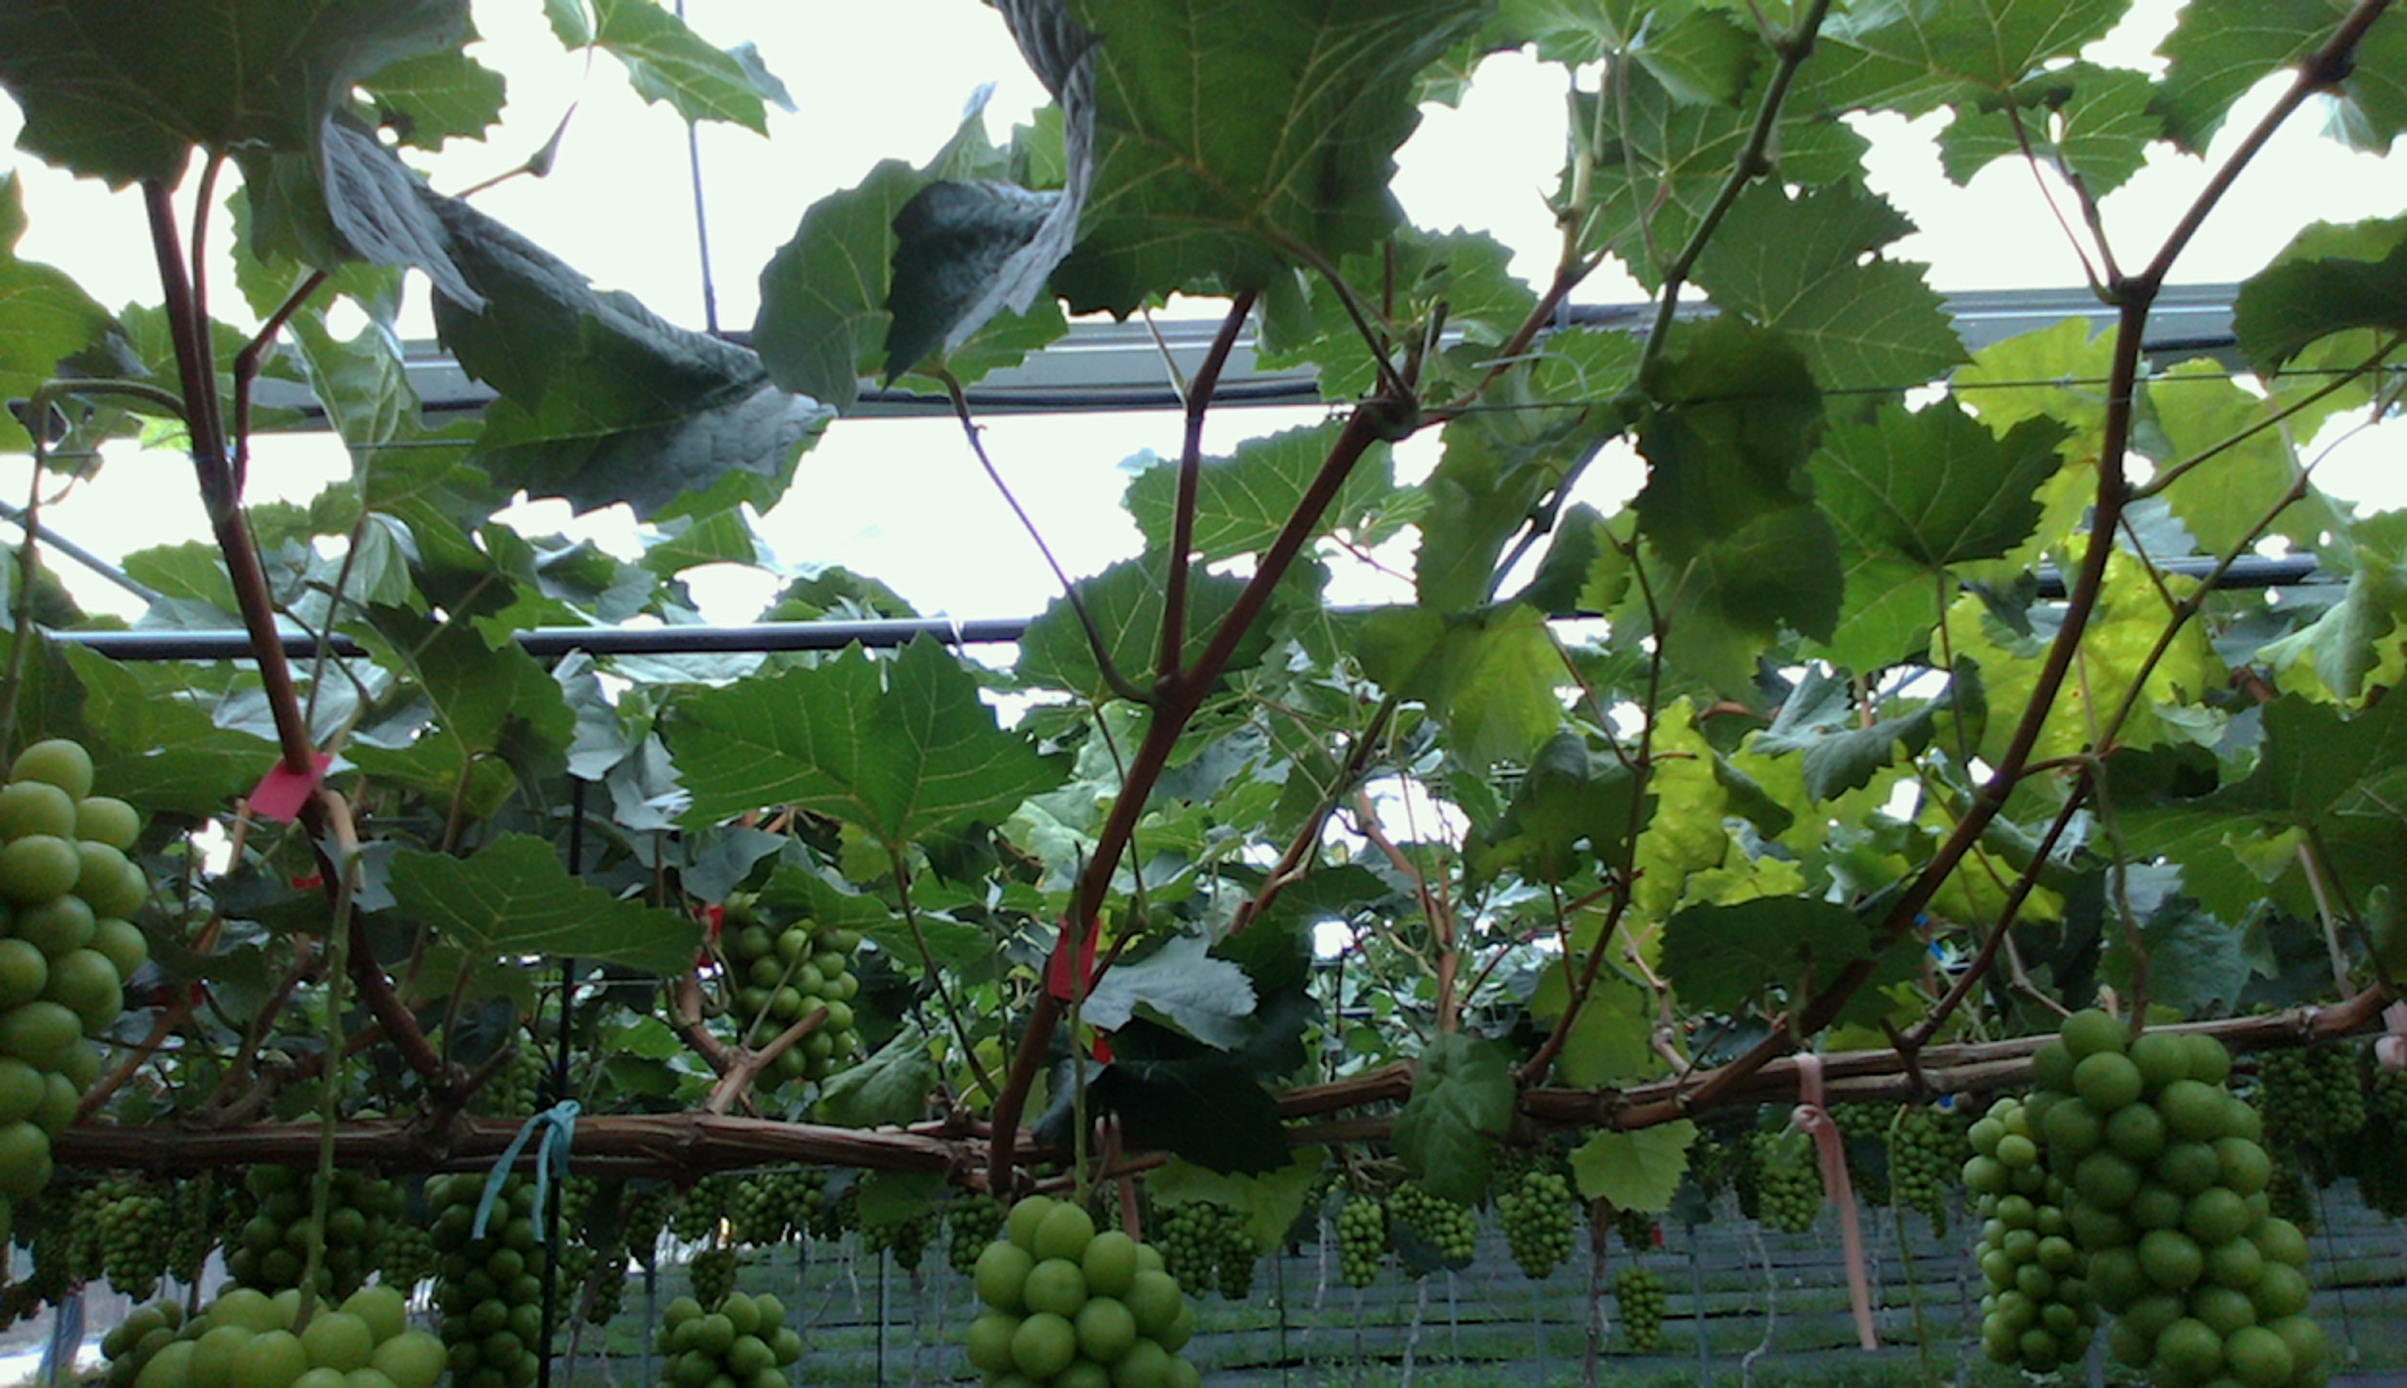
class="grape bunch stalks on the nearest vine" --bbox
[2021,754,2147,1051]
[1065,850,1090,1211]
[287,790,359,1338]
[2,376,187,781]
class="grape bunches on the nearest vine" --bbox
[131,1286,449,1386]
[966,1195,1202,1386]
[2021,1008,2330,1386]
[4,740,150,1249]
